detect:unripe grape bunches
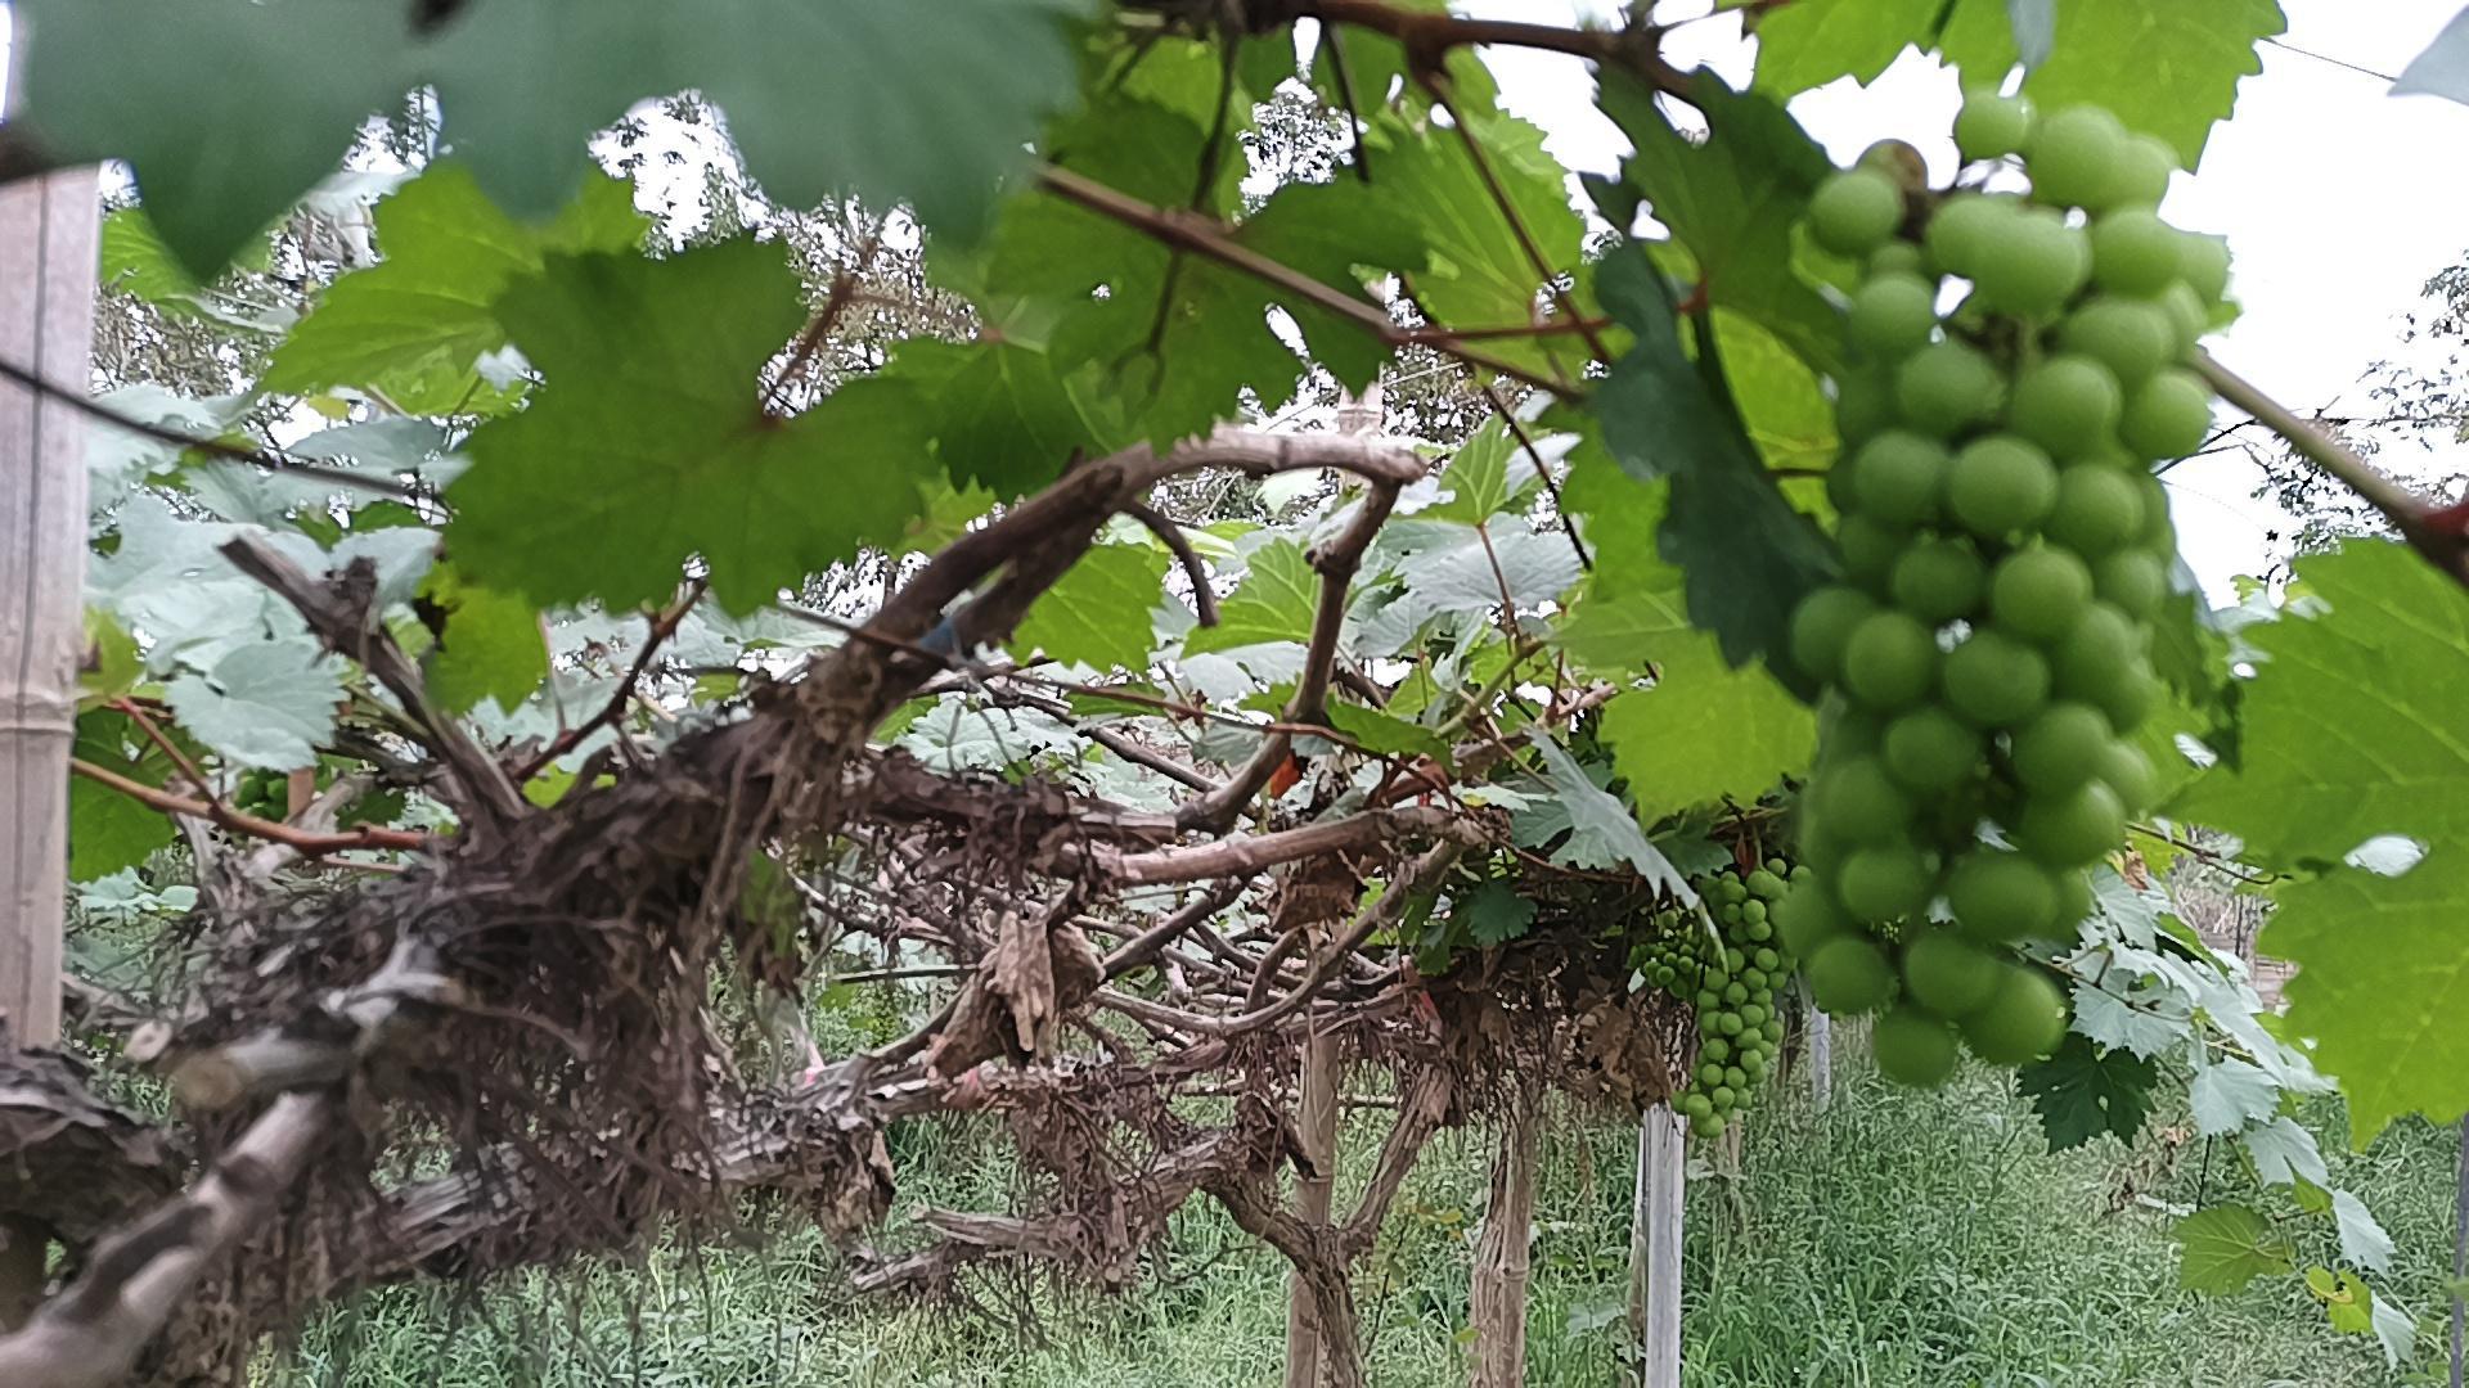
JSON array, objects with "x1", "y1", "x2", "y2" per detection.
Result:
[
  {"x1": 1629, "y1": 909, "x2": 1714, "y2": 1001},
  {"x1": 1772, "y1": 96, "x2": 2227, "y2": 1085},
  {"x1": 1672, "y1": 859, "x2": 1812, "y2": 1139},
  {"x1": 233, "y1": 769, "x2": 289, "y2": 821}
]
